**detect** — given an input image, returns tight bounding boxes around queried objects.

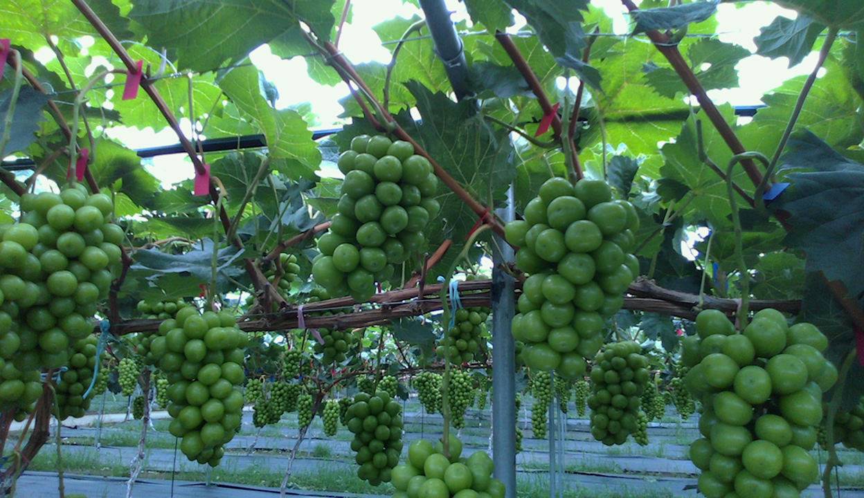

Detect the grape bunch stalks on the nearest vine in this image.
[69,67,128,189]
[727,151,771,334]
[440,223,490,461]
[203,176,229,312]
[561,67,576,185]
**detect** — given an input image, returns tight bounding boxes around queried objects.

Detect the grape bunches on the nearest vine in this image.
[2,183,125,373]
[312,134,441,303]
[505,176,640,380]
[681,308,838,497]
[391,433,505,497]
[151,306,248,456]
